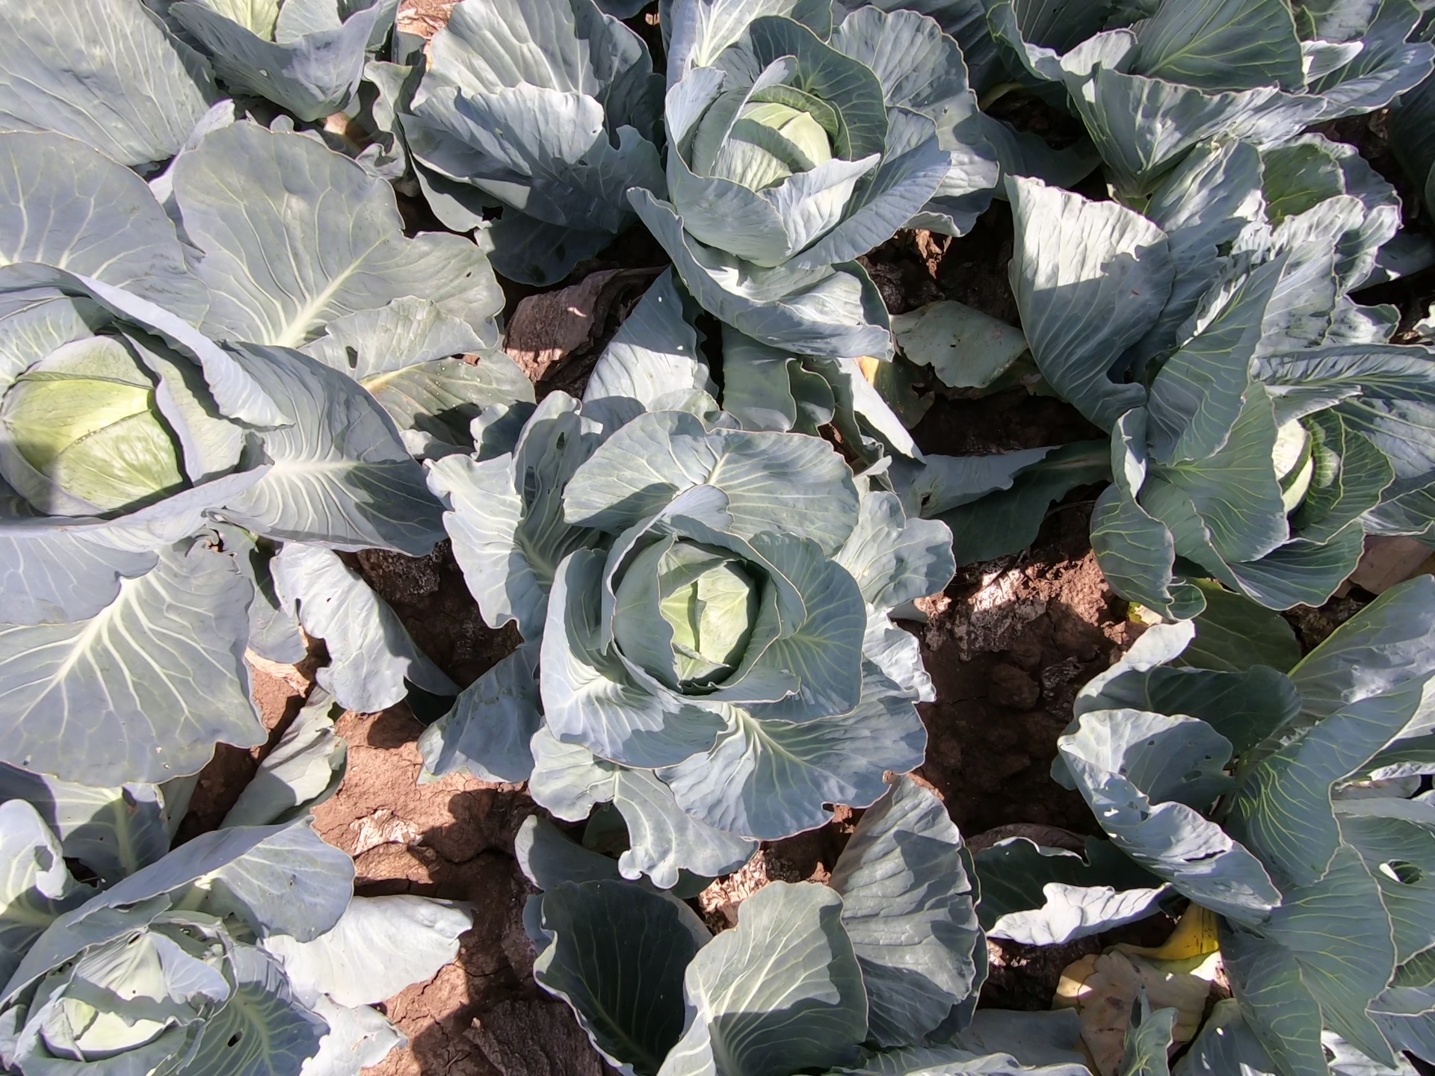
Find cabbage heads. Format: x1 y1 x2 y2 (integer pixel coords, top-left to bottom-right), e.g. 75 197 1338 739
1182 394 1313 525
175 2 331 89
611 539 758 687
37 935 182 1064
2 336 237 528
1136 0 1300 114
688 91 833 250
